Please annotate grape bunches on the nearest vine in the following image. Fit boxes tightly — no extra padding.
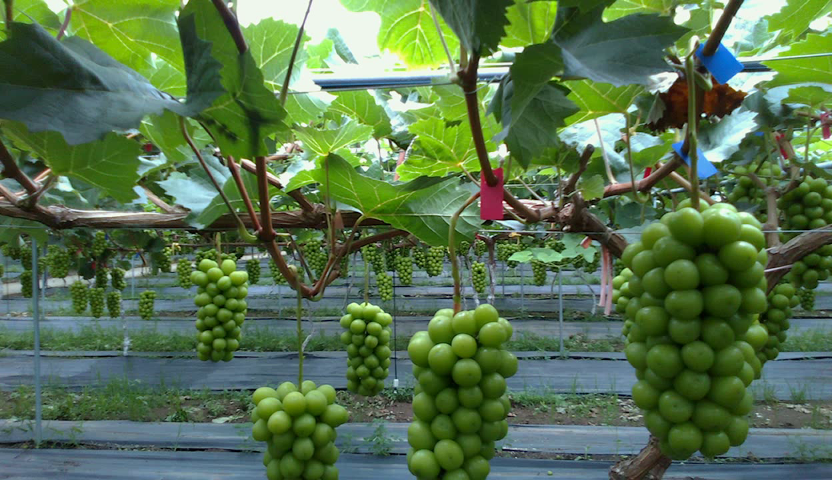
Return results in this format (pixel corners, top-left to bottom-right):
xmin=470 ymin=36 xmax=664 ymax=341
xmin=407 ymin=304 xmax=519 ymax=479
xmin=621 ymin=197 xmax=768 ymax=460
xmin=251 ymin=380 xmax=347 ymax=479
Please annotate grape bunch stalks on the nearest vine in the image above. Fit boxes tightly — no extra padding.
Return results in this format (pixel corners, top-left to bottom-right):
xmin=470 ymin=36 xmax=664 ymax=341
xmin=289 ymin=264 xmax=303 ymax=393
xmin=448 ymin=189 xmax=481 ymax=316
xmin=684 ymin=35 xmax=700 ymax=211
